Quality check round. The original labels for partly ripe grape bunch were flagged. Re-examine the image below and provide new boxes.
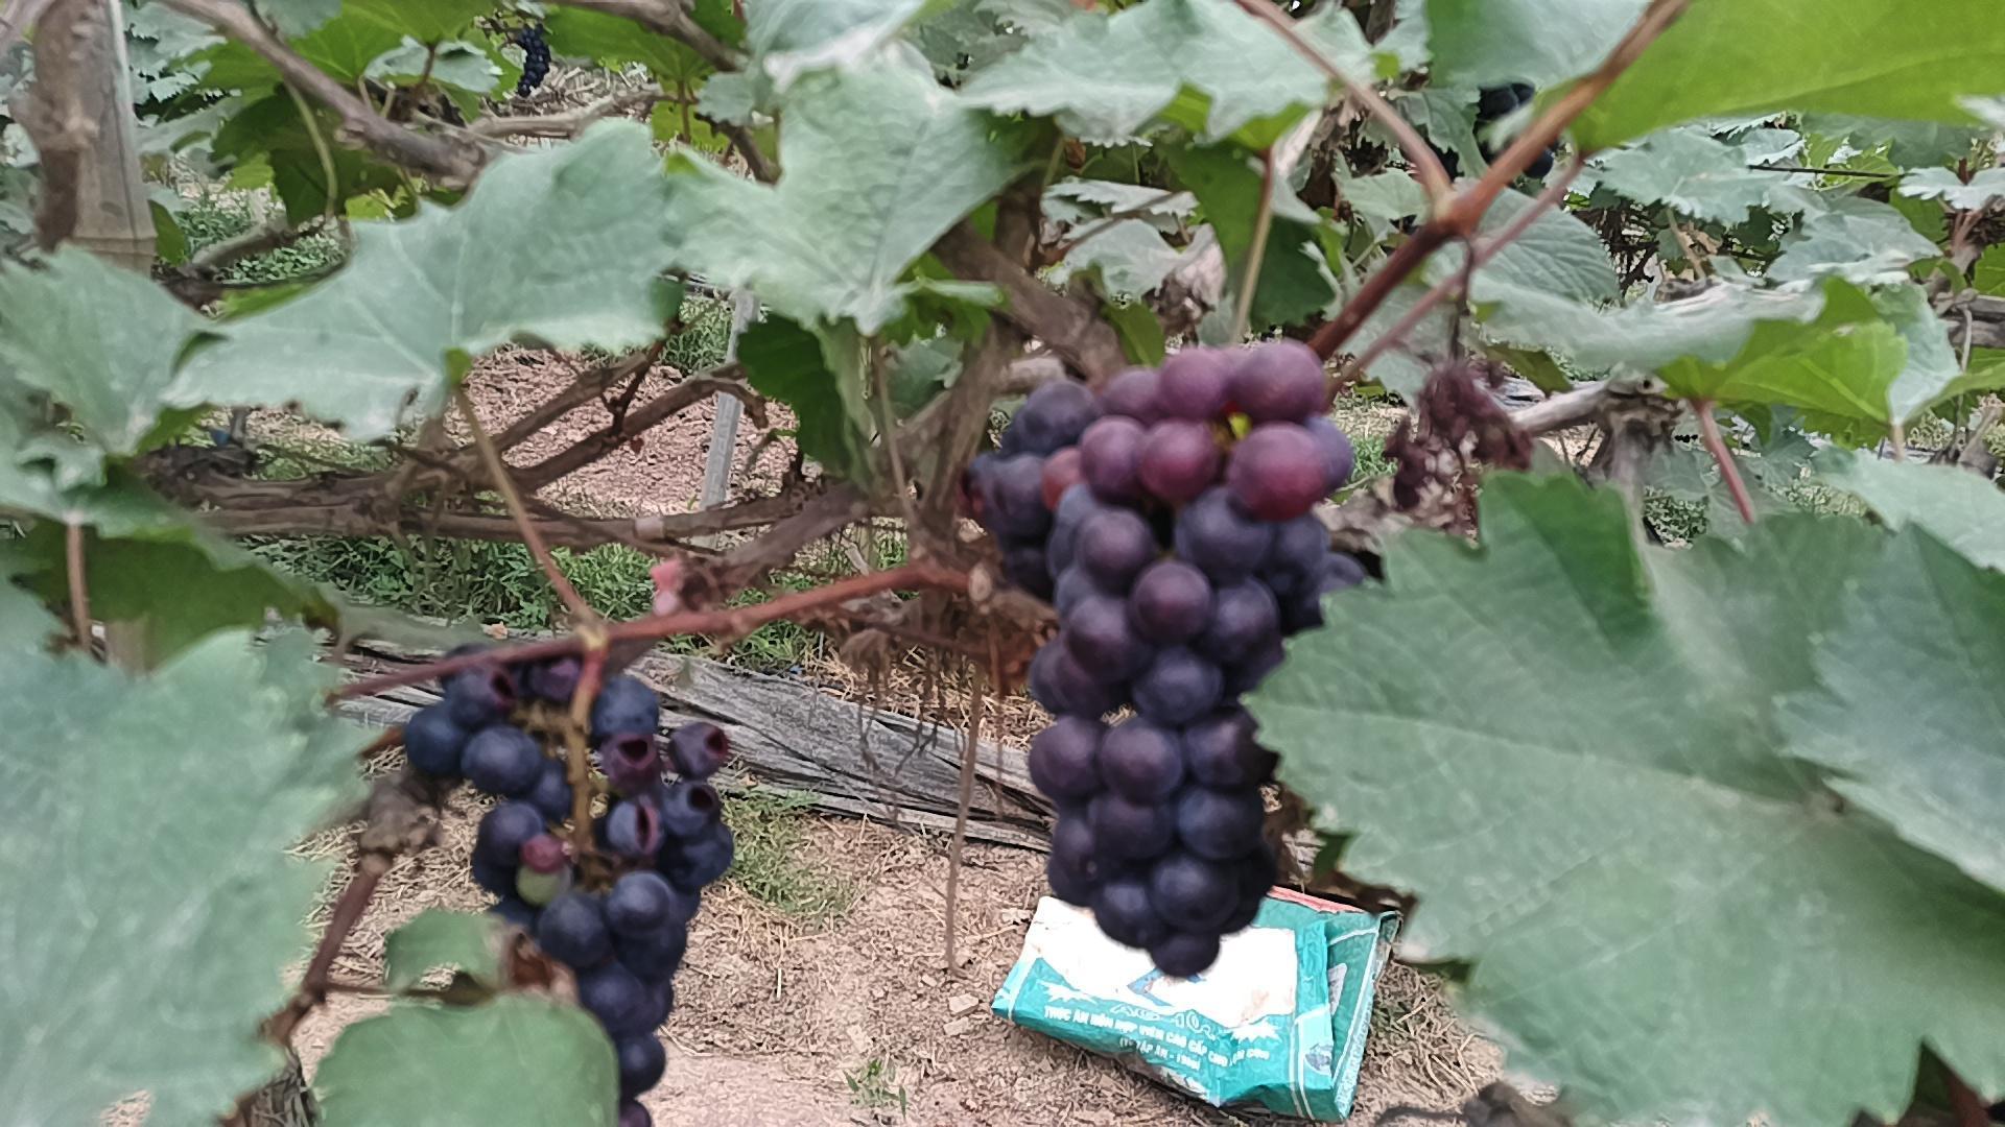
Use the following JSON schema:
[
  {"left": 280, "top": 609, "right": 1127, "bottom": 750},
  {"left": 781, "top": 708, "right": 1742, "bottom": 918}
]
[{"left": 403, "top": 649, "right": 733, "bottom": 1126}]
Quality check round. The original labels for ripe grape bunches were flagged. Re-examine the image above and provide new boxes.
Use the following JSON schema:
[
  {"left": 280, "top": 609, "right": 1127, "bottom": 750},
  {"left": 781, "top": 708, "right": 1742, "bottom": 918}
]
[
  {"left": 961, "top": 342, "right": 1365, "bottom": 977},
  {"left": 1457, "top": 78, "right": 1566, "bottom": 178},
  {"left": 513, "top": 22, "right": 553, "bottom": 97}
]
